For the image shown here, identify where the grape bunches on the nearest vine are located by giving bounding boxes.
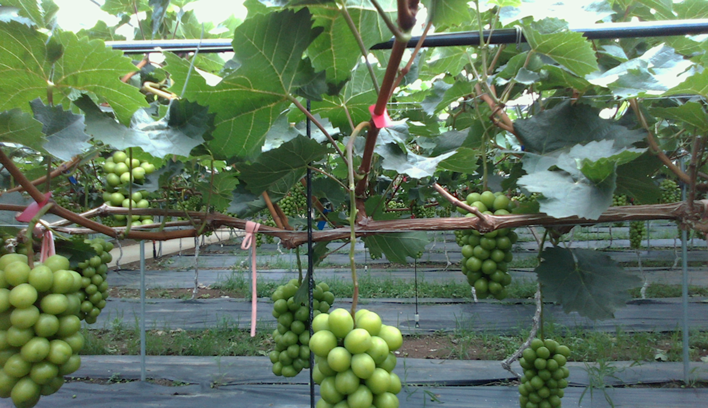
[1,253,83,407]
[307,308,403,407]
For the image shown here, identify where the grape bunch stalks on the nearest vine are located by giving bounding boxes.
[342,121,366,320]
[23,203,49,267]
